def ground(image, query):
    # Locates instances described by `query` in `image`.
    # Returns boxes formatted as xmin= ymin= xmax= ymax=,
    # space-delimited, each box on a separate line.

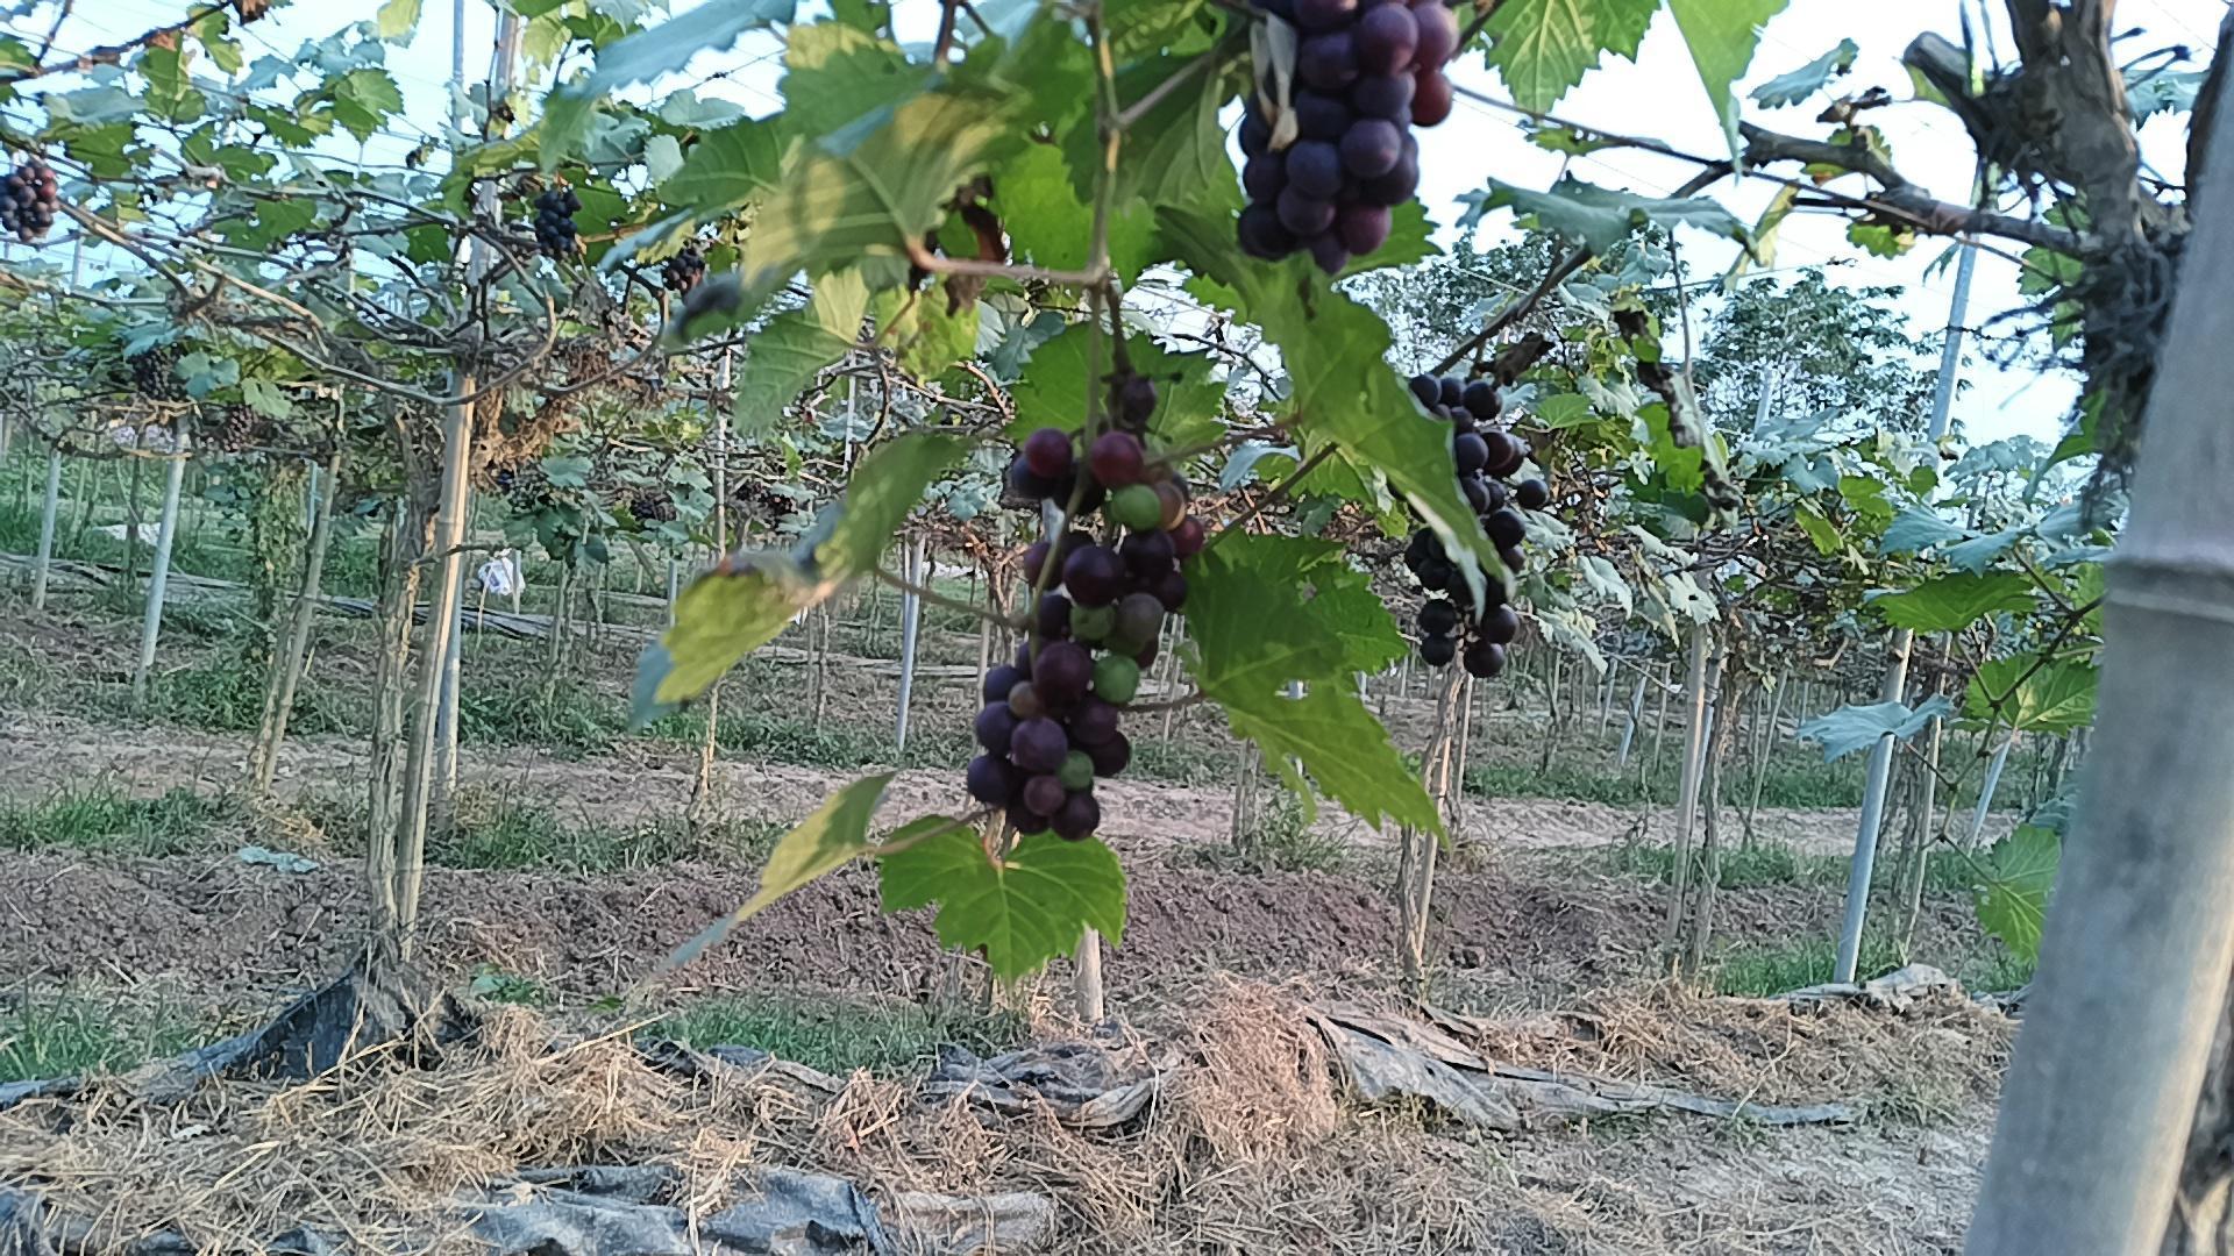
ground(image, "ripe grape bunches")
xmin=1386 ymin=373 xmax=1550 ymax=678
xmin=1237 ymin=1 xmax=1459 ymax=274
xmin=0 ymin=156 xmax=61 ymax=243
xmin=532 ymin=183 xmax=581 ymax=261
xmin=661 ymin=235 xmax=707 ymax=302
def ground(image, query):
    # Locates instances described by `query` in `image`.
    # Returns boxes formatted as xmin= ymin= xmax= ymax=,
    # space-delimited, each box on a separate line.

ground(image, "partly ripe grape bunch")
xmin=967 ymin=377 xmax=1204 ymax=842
